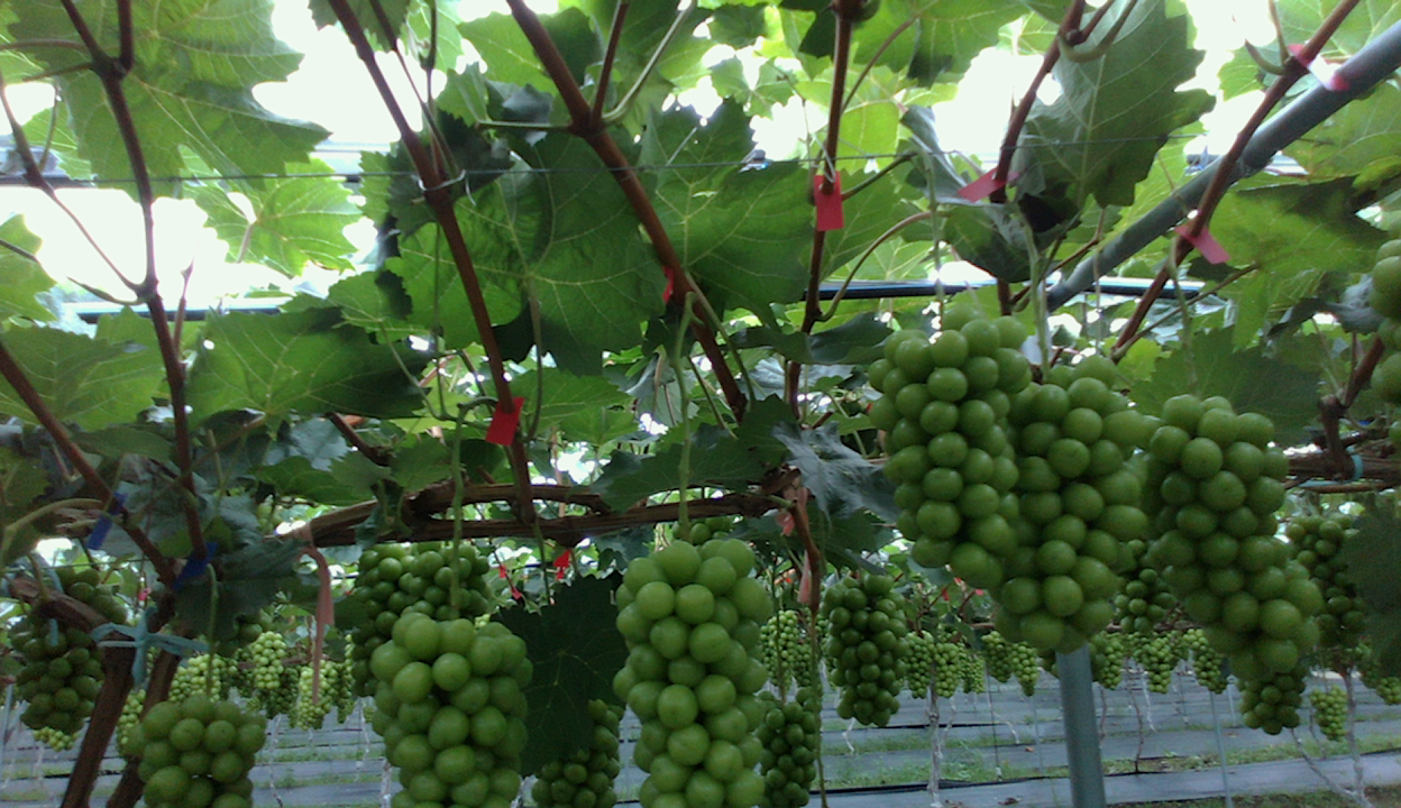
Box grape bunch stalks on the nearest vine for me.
[843,148,944,305]
[207,563,218,692]
[449,396,495,616]
[1009,204,1051,379]
[672,293,702,541]
[1170,237,1200,392]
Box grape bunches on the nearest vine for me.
[614,536,775,807]
[369,612,532,807]
[1138,394,1322,683]
[991,352,1146,656]
[121,695,267,807]
[868,301,1031,590]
